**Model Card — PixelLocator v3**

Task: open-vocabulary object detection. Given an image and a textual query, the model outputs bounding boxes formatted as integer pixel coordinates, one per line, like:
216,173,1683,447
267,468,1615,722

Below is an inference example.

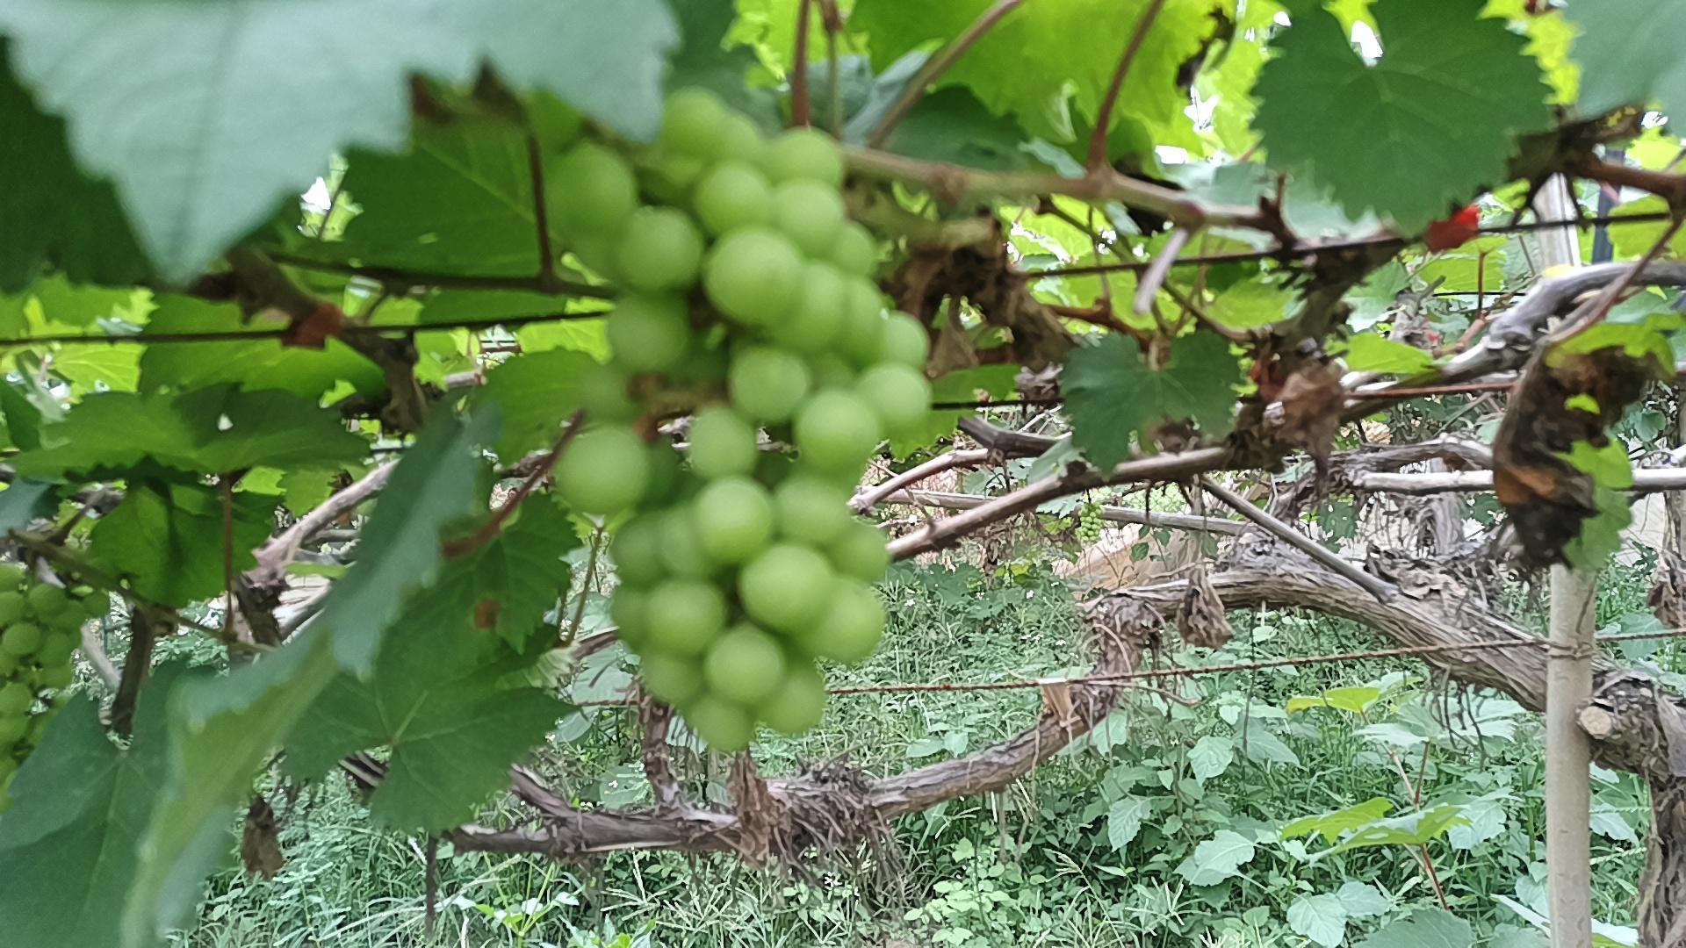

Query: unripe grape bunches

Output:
0,550,109,807
549,89,931,751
